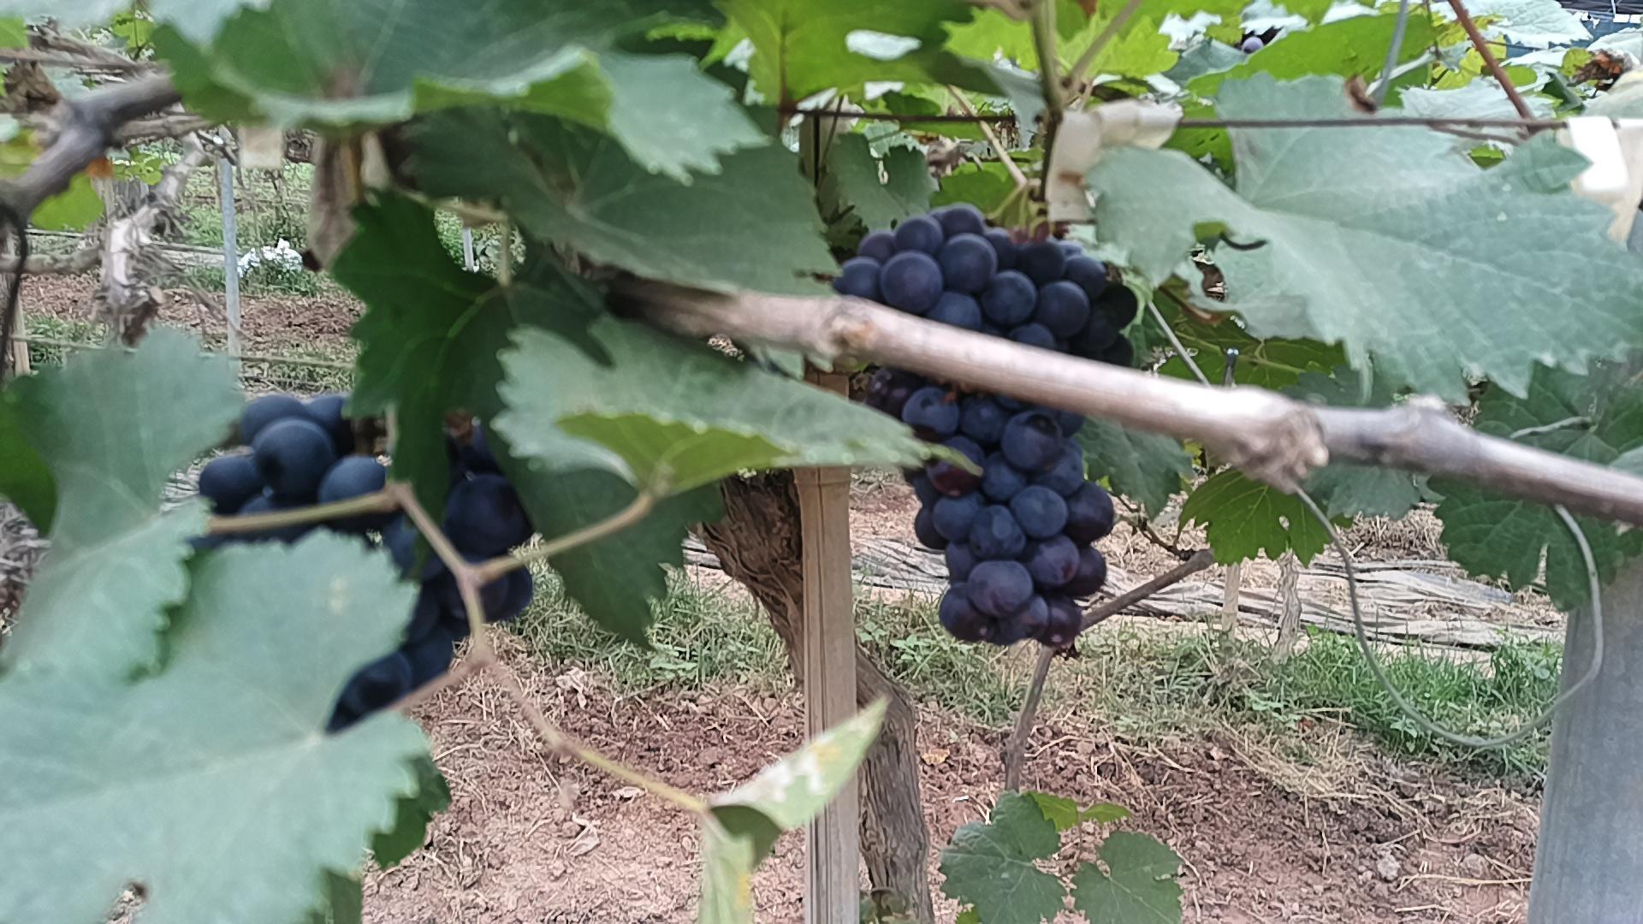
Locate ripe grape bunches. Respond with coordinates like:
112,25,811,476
833,204,1138,648
187,395,535,736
